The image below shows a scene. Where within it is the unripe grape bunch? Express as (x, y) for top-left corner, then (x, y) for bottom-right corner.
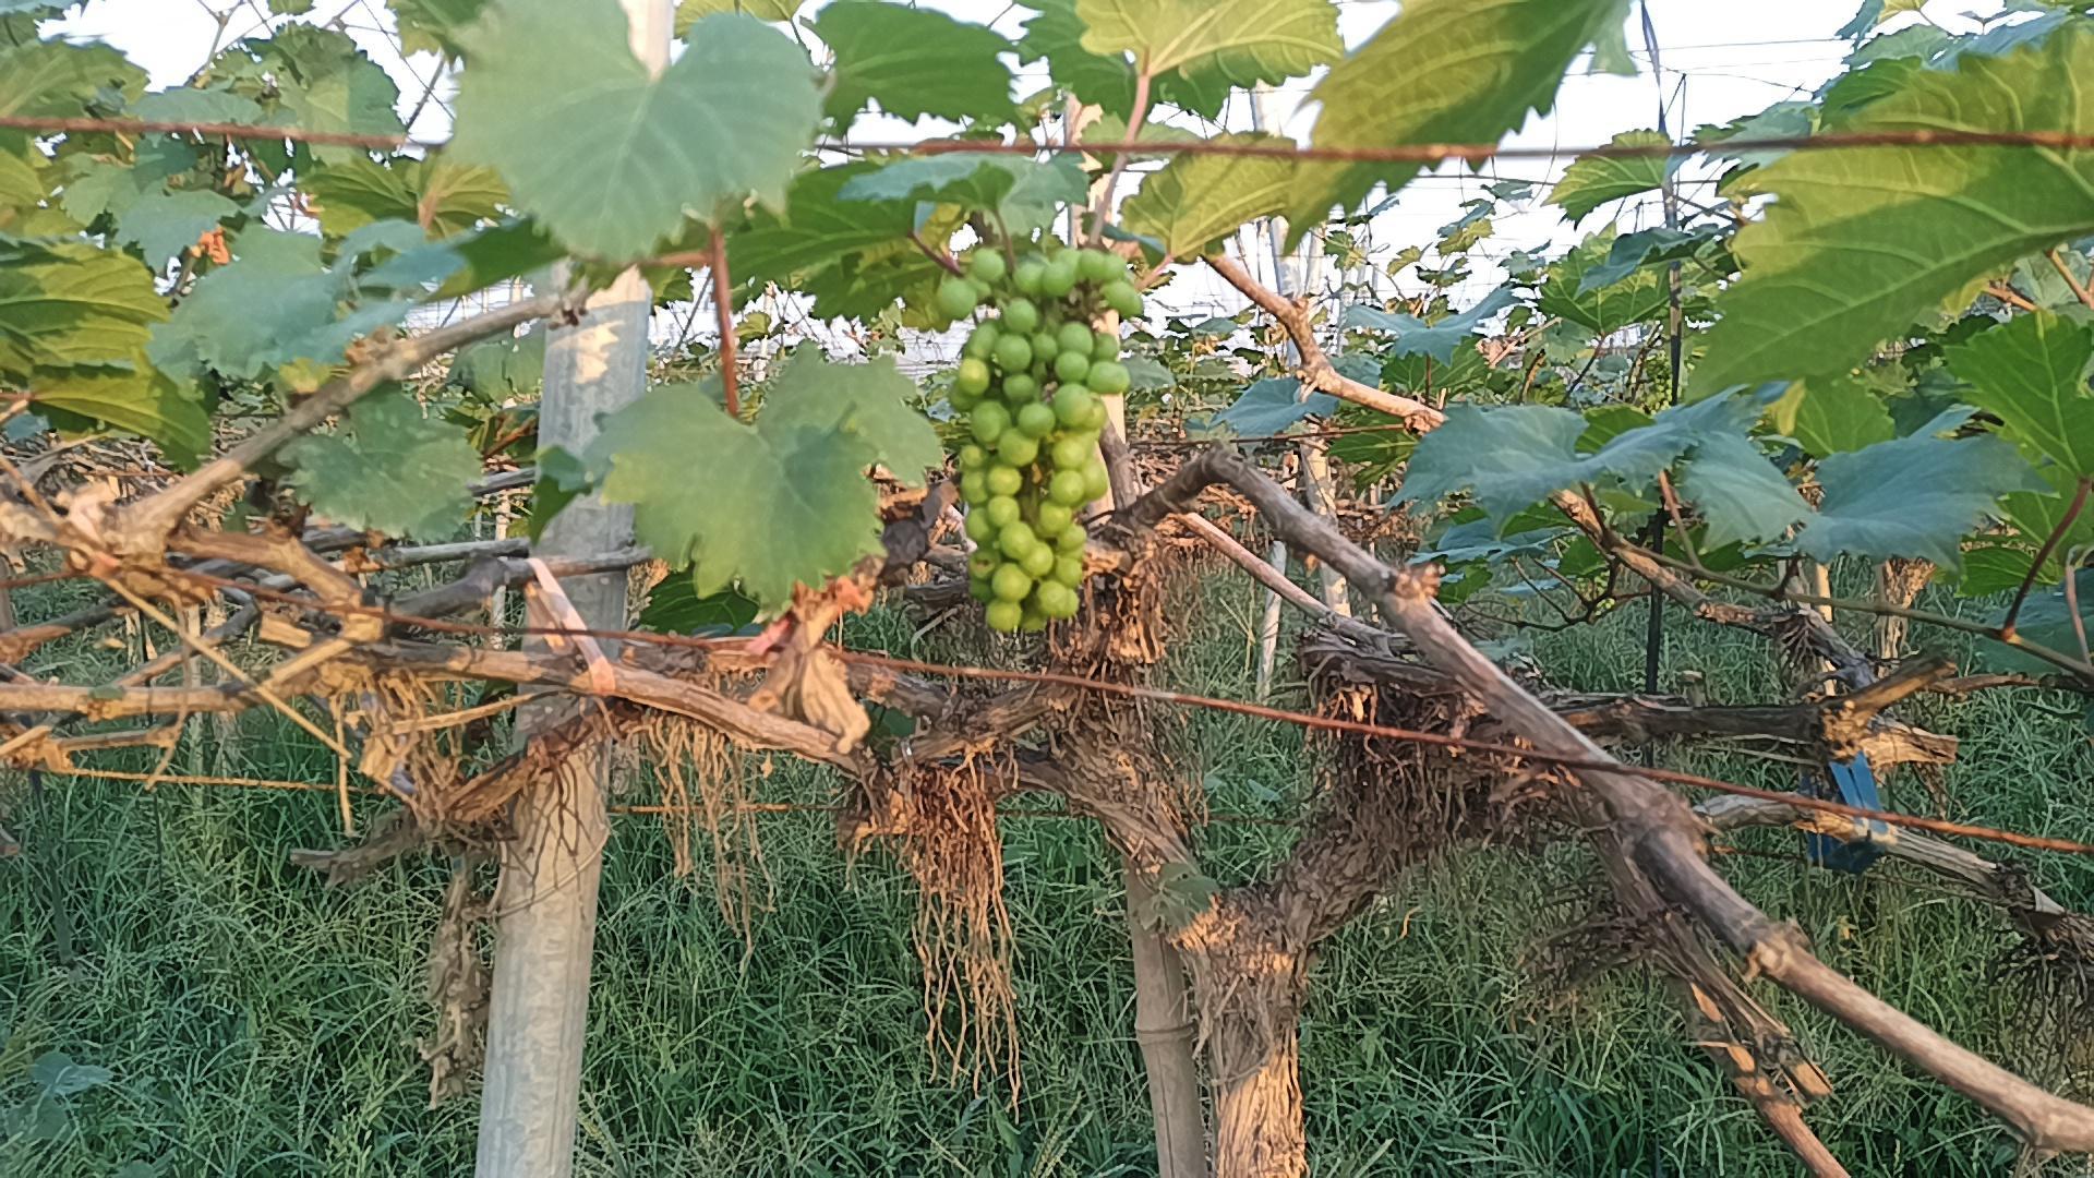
(936, 249), (1141, 632)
